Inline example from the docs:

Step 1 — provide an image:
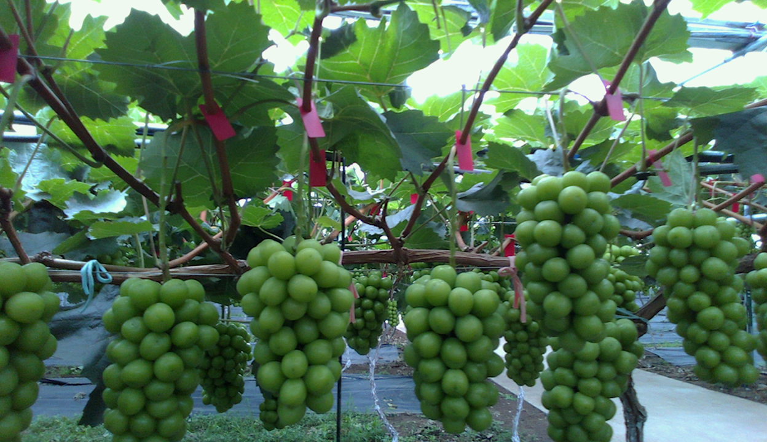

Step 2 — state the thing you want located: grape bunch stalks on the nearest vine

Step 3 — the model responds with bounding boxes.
[159,118,211,284]
[293,130,308,249]
[559,88,597,171]
[693,138,704,208]
[447,144,457,266]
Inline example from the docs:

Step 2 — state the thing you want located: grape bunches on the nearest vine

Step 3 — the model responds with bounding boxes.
[514,170,619,351]
[237,235,353,427]
[102,277,218,441]
[0,261,60,441]
[541,319,643,441]
[404,265,508,435]
[647,208,763,386]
